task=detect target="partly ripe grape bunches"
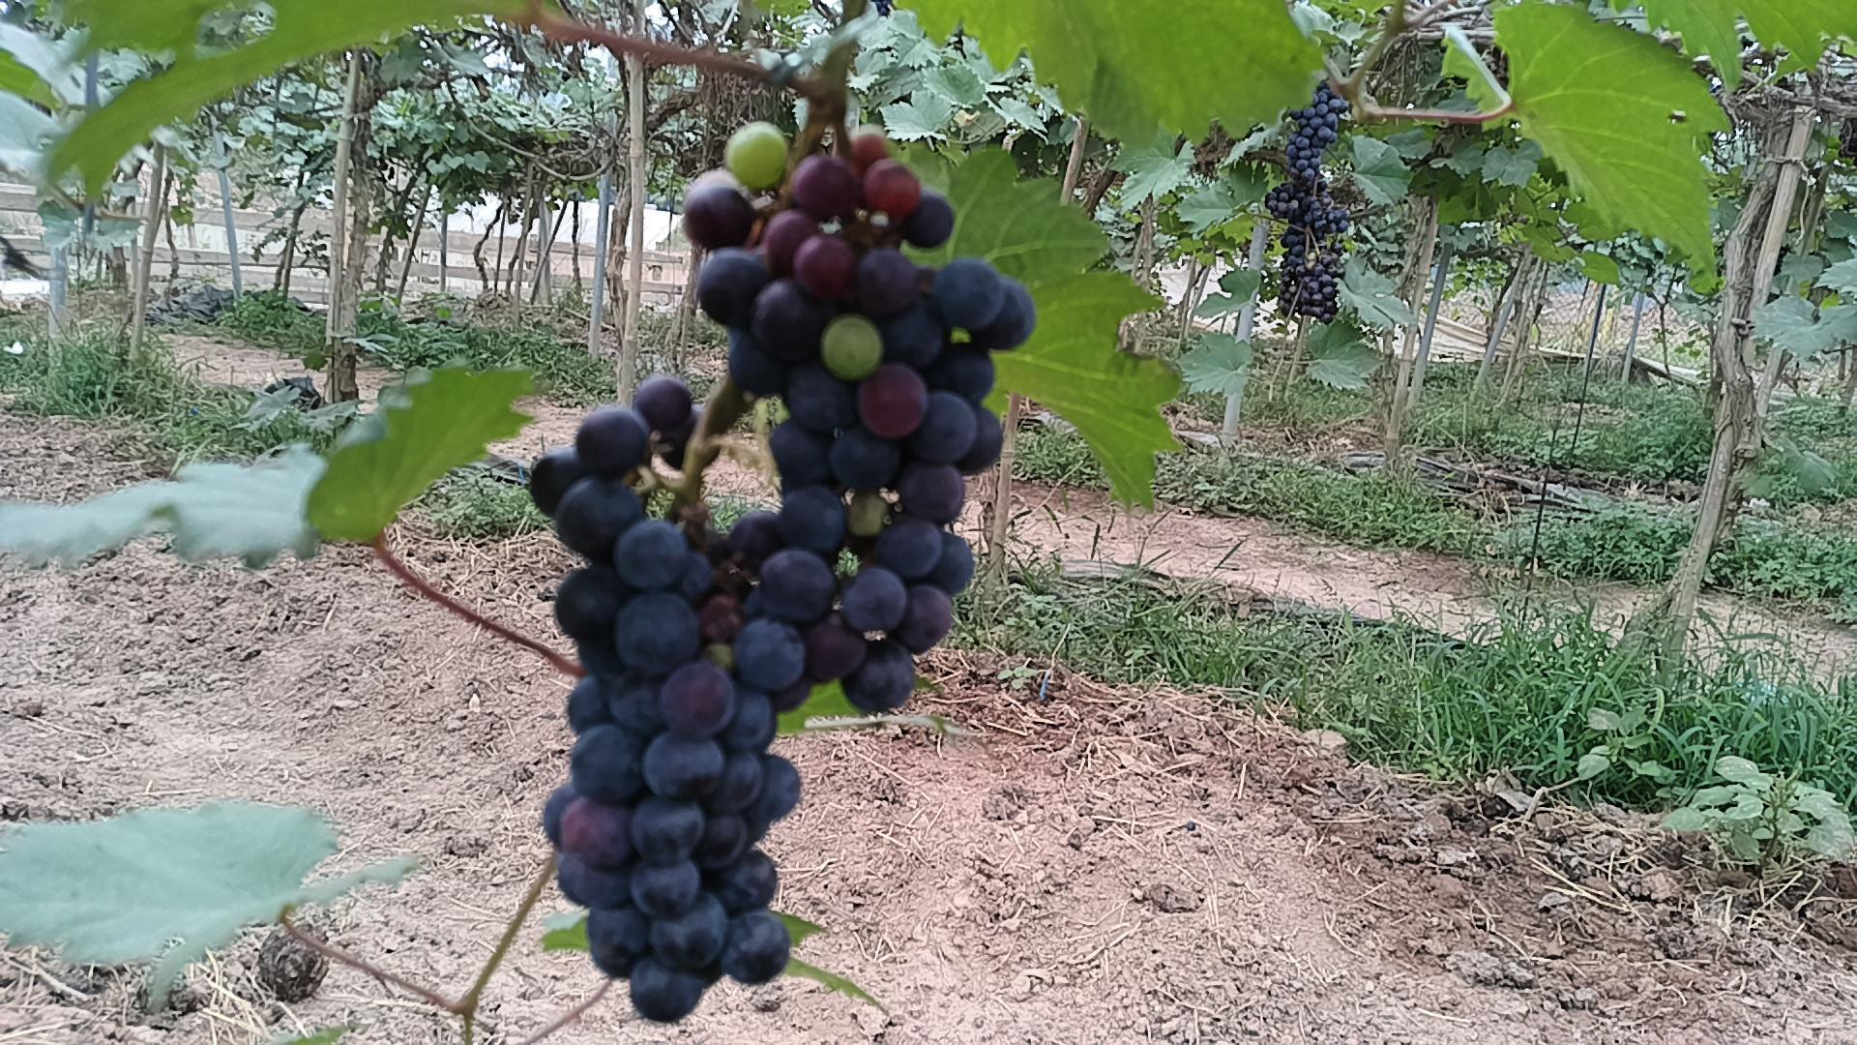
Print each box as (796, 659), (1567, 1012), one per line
(530, 373), (867, 1024)
(679, 121), (1034, 711)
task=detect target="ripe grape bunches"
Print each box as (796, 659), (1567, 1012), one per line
(1277, 224), (1328, 317)
(1285, 78), (1351, 187)
(1297, 241), (1348, 324)
(1264, 177), (1352, 234)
